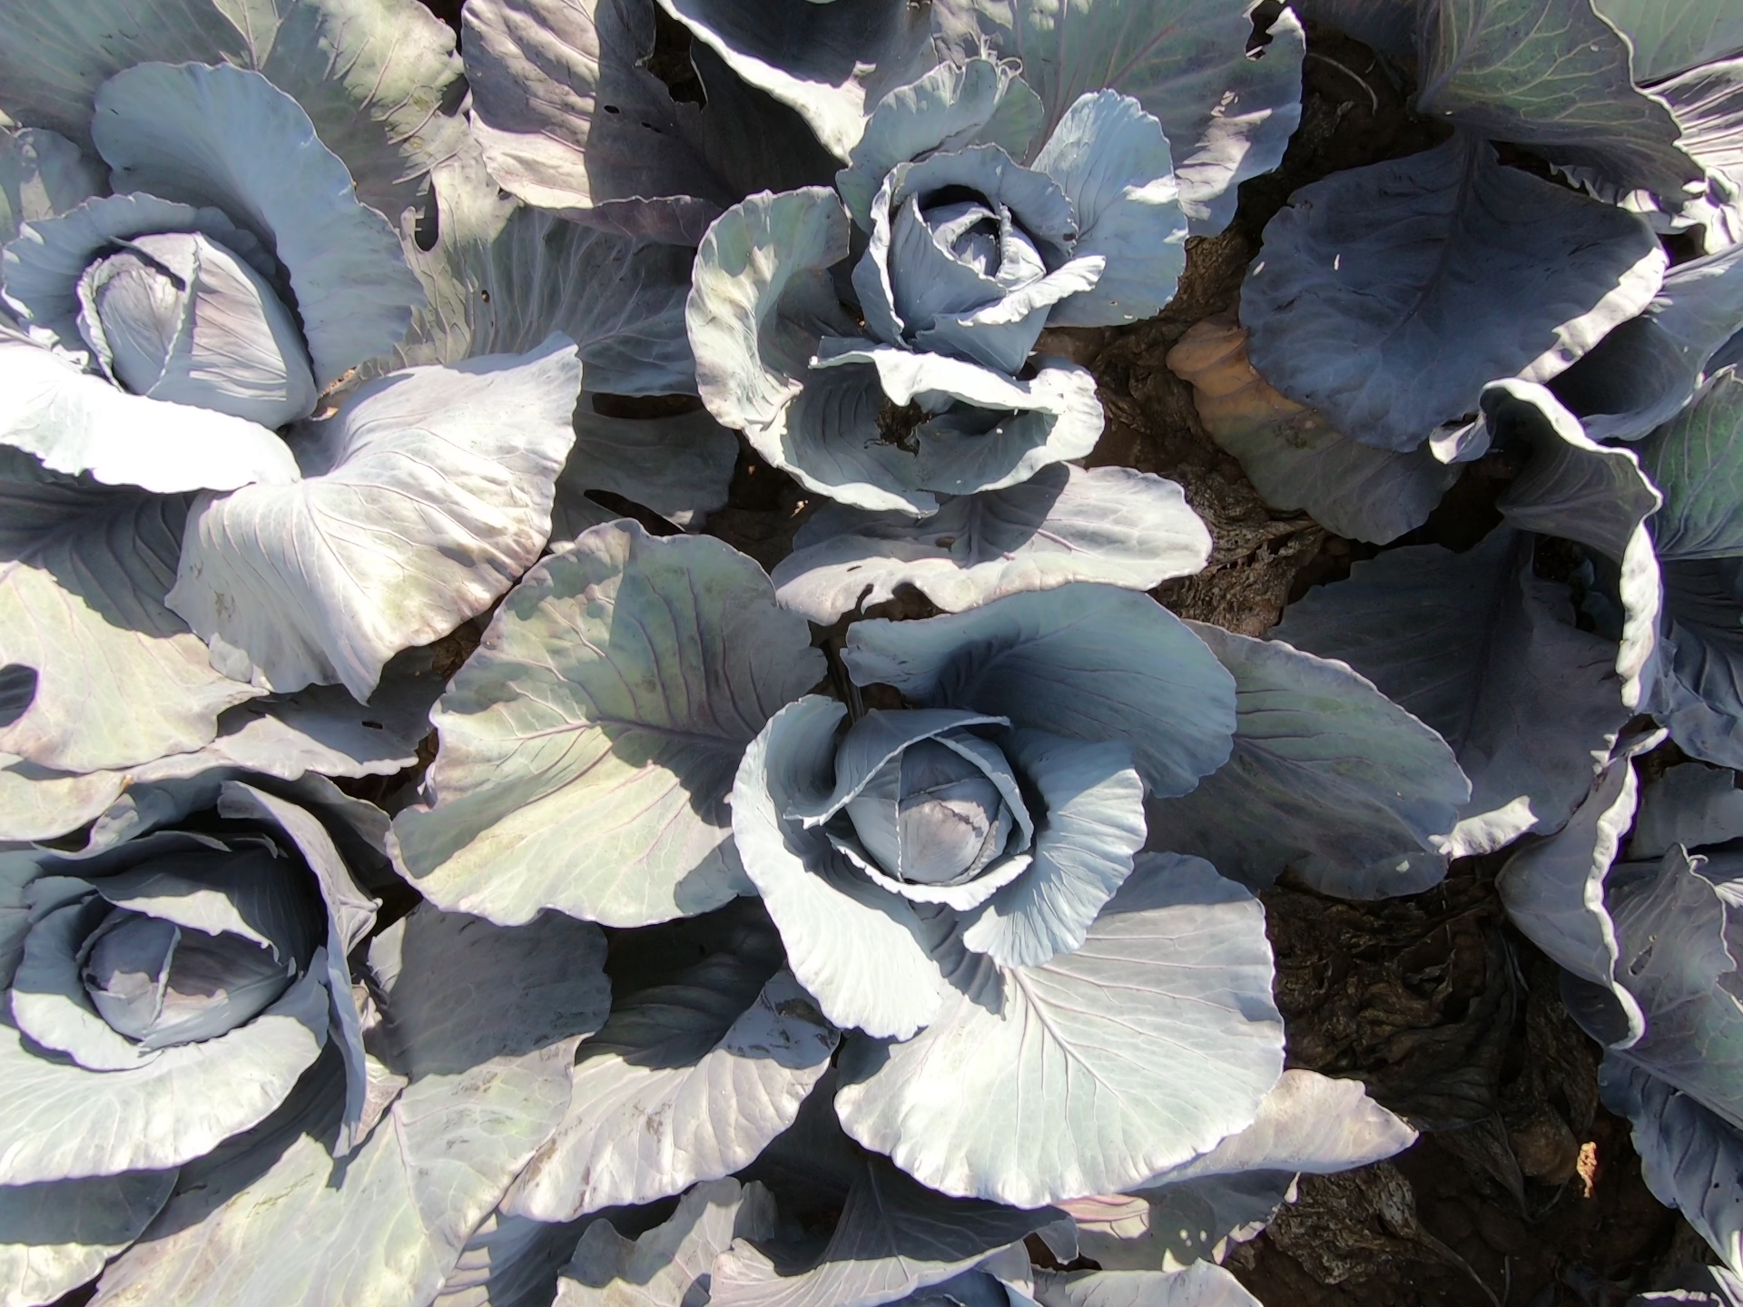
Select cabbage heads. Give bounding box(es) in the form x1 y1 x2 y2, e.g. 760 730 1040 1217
833 1181 1033 1302
850 725 1027 883
79 866 290 1043
89 224 297 416
890 212 1027 347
